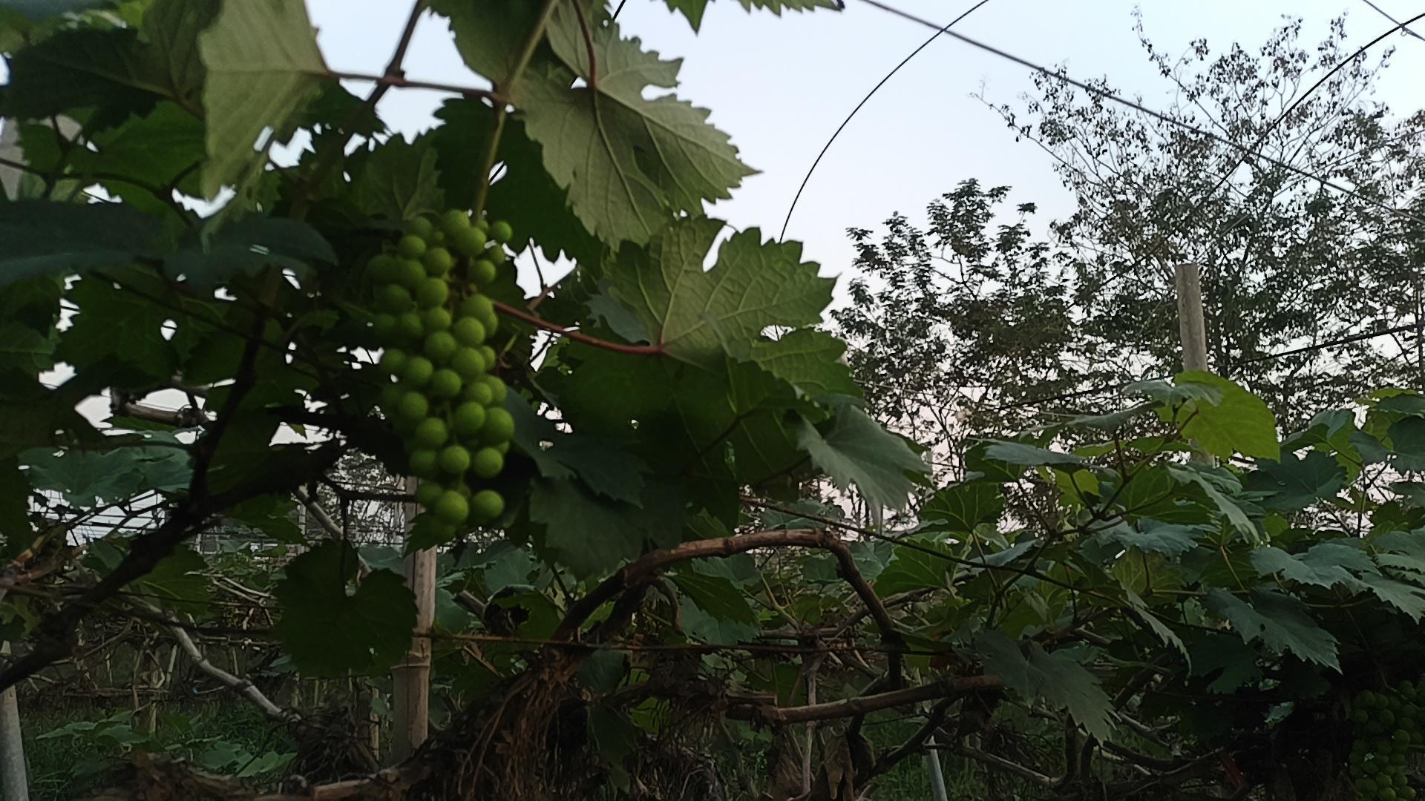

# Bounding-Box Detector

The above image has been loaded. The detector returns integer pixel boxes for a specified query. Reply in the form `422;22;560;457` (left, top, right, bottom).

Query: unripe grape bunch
369;209;514;547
